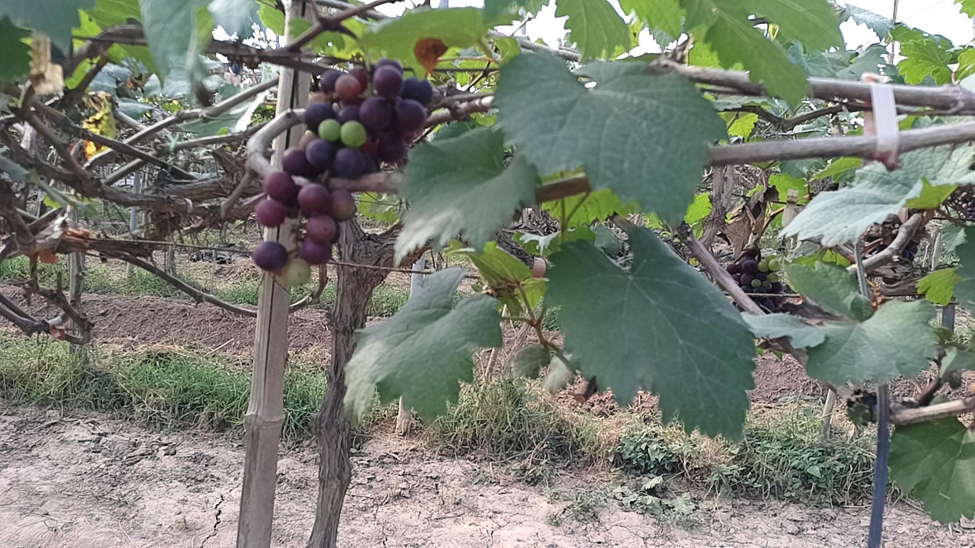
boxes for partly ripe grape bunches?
[727,245,787,315]
[253,58,433,286]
